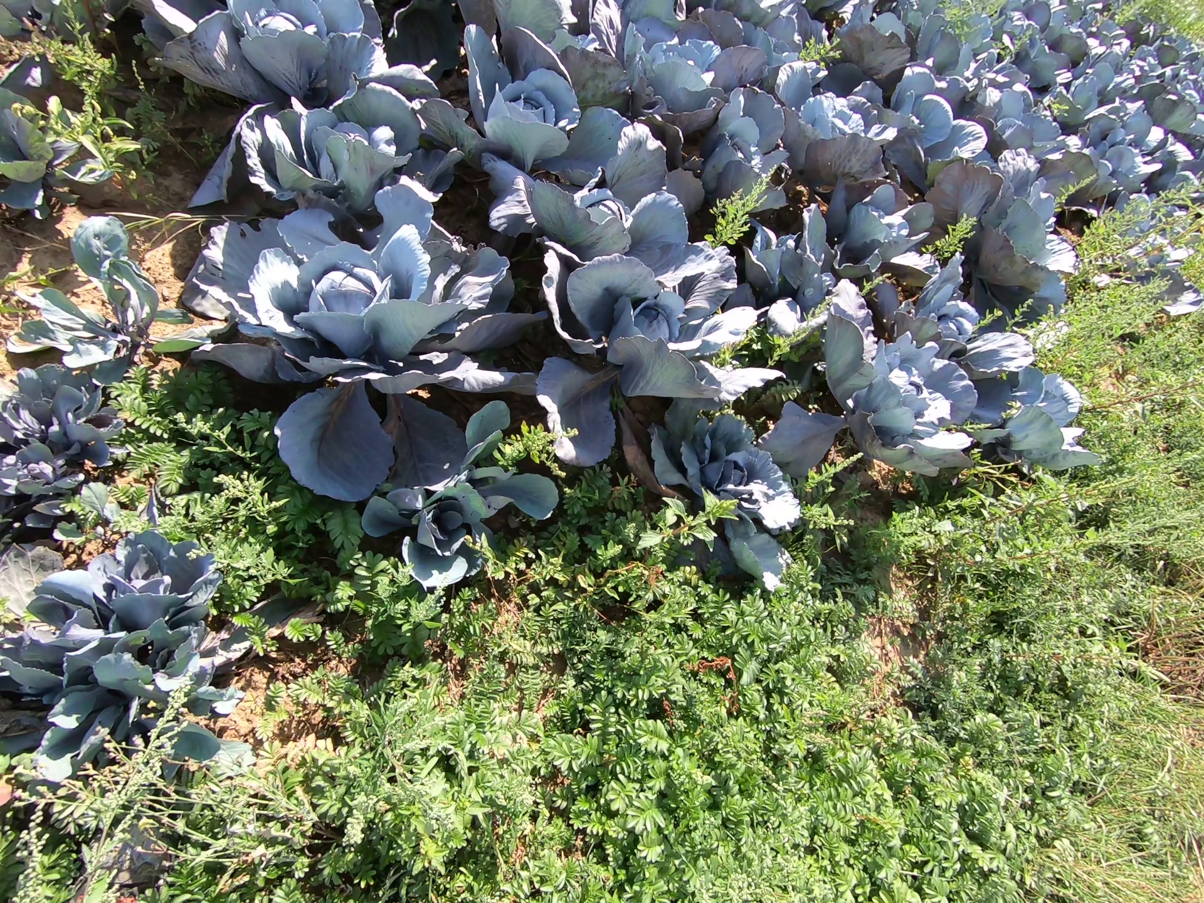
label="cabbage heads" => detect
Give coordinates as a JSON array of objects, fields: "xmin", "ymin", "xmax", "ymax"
[
  {"xmin": 313, "ymin": 267, "xmax": 388, "ymax": 335},
  {"xmin": 500, "ymin": 94, "xmax": 547, "ymax": 138},
  {"xmin": 716, "ymin": 461, "xmax": 745, "ymax": 489},
  {"xmin": 620, "ymin": 303, "xmax": 670, "ymax": 356},
  {"xmin": 884, "ymin": 374, "xmax": 923, "ymax": 415},
  {"xmin": 257, "ymin": 13, "xmax": 301, "ymax": 50},
  {"xmin": 584, "ymin": 198, "xmax": 630, "ymax": 240}
]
